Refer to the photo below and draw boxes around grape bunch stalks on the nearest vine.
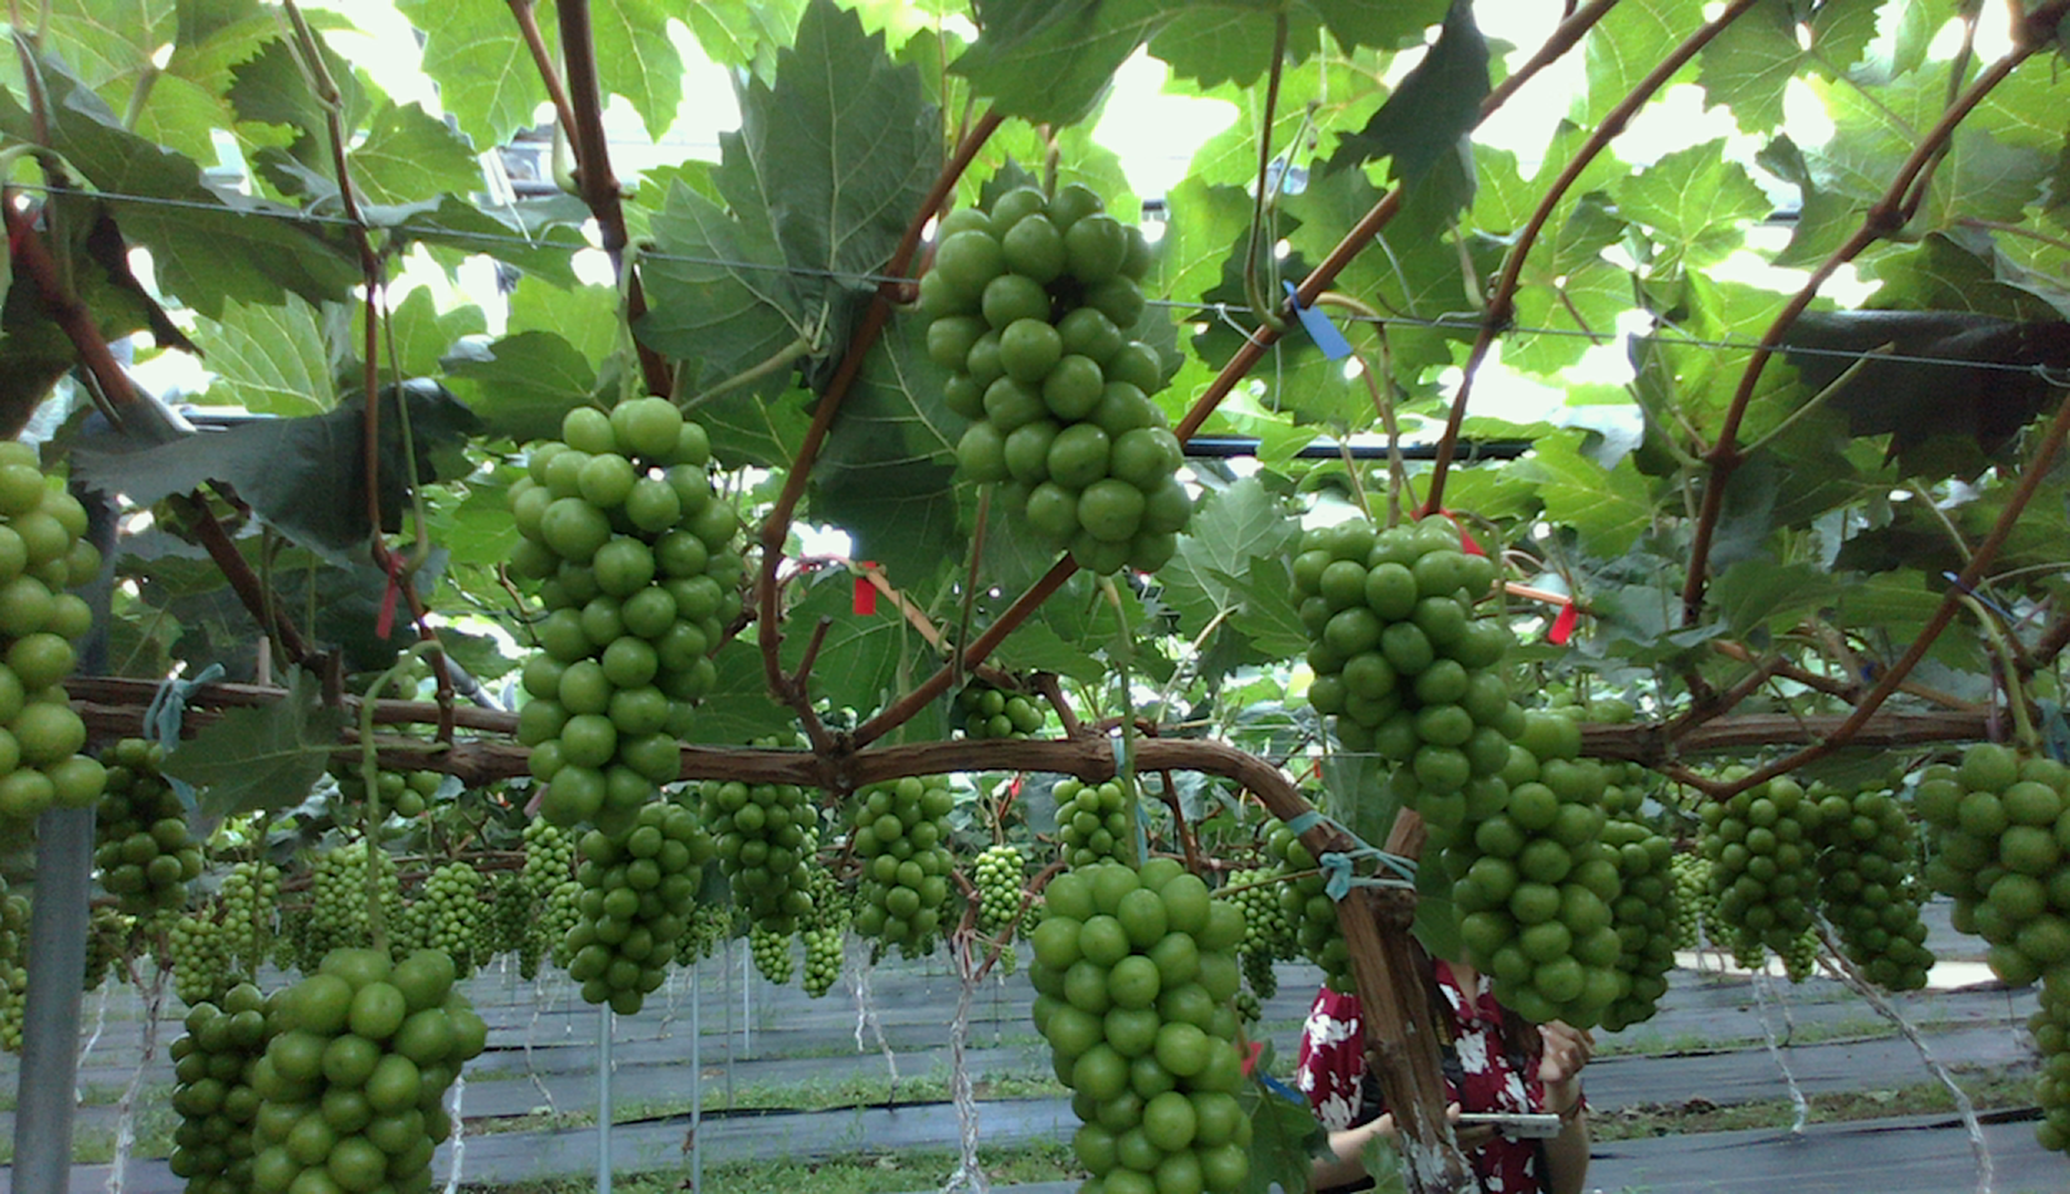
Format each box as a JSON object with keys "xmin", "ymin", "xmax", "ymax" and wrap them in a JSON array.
[
  {"xmin": 1312, "ymin": 292, "xmax": 1405, "ymax": 531},
  {"xmin": 1456, "ymin": 509, "xmax": 1514, "ymax": 690},
  {"xmin": 1086, "ymin": 575, "xmax": 1141, "ymax": 867},
  {"xmin": 1042, "ymin": 129, "xmax": 1058, "ymax": 196},
  {"xmin": 615, "ymin": 235, "xmax": 649, "ymax": 396},
  {"xmin": 358, "ymin": 640, "xmax": 435, "ymax": 954},
  {"xmin": 1967, "ymin": 599, "xmax": 2035, "ymax": 758}
]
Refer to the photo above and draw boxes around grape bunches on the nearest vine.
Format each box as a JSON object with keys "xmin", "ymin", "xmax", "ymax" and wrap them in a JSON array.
[
  {"xmin": 1438, "ymin": 713, "xmax": 1624, "ymax": 1033},
  {"xmin": 245, "ymin": 949, "xmax": 489, "ymax": 1192},
  {"xmin": 1914, "ymin": 743, "xmax": 2068, "ymax": 1003},
  {"xmin": 1030, "ymin": 857, "xmax": 1254, "ymax": 1192},
  {"xmin": 921, "ymin": 186, "xmax": 1194, "ymax": 574},
  {"xmin": 503, "ymin": 398, "xmax": 745, "ymax": 834},
  {"xmin": 1285, "ymin": 516, "xmax": 1521, "ymax": 828}
]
